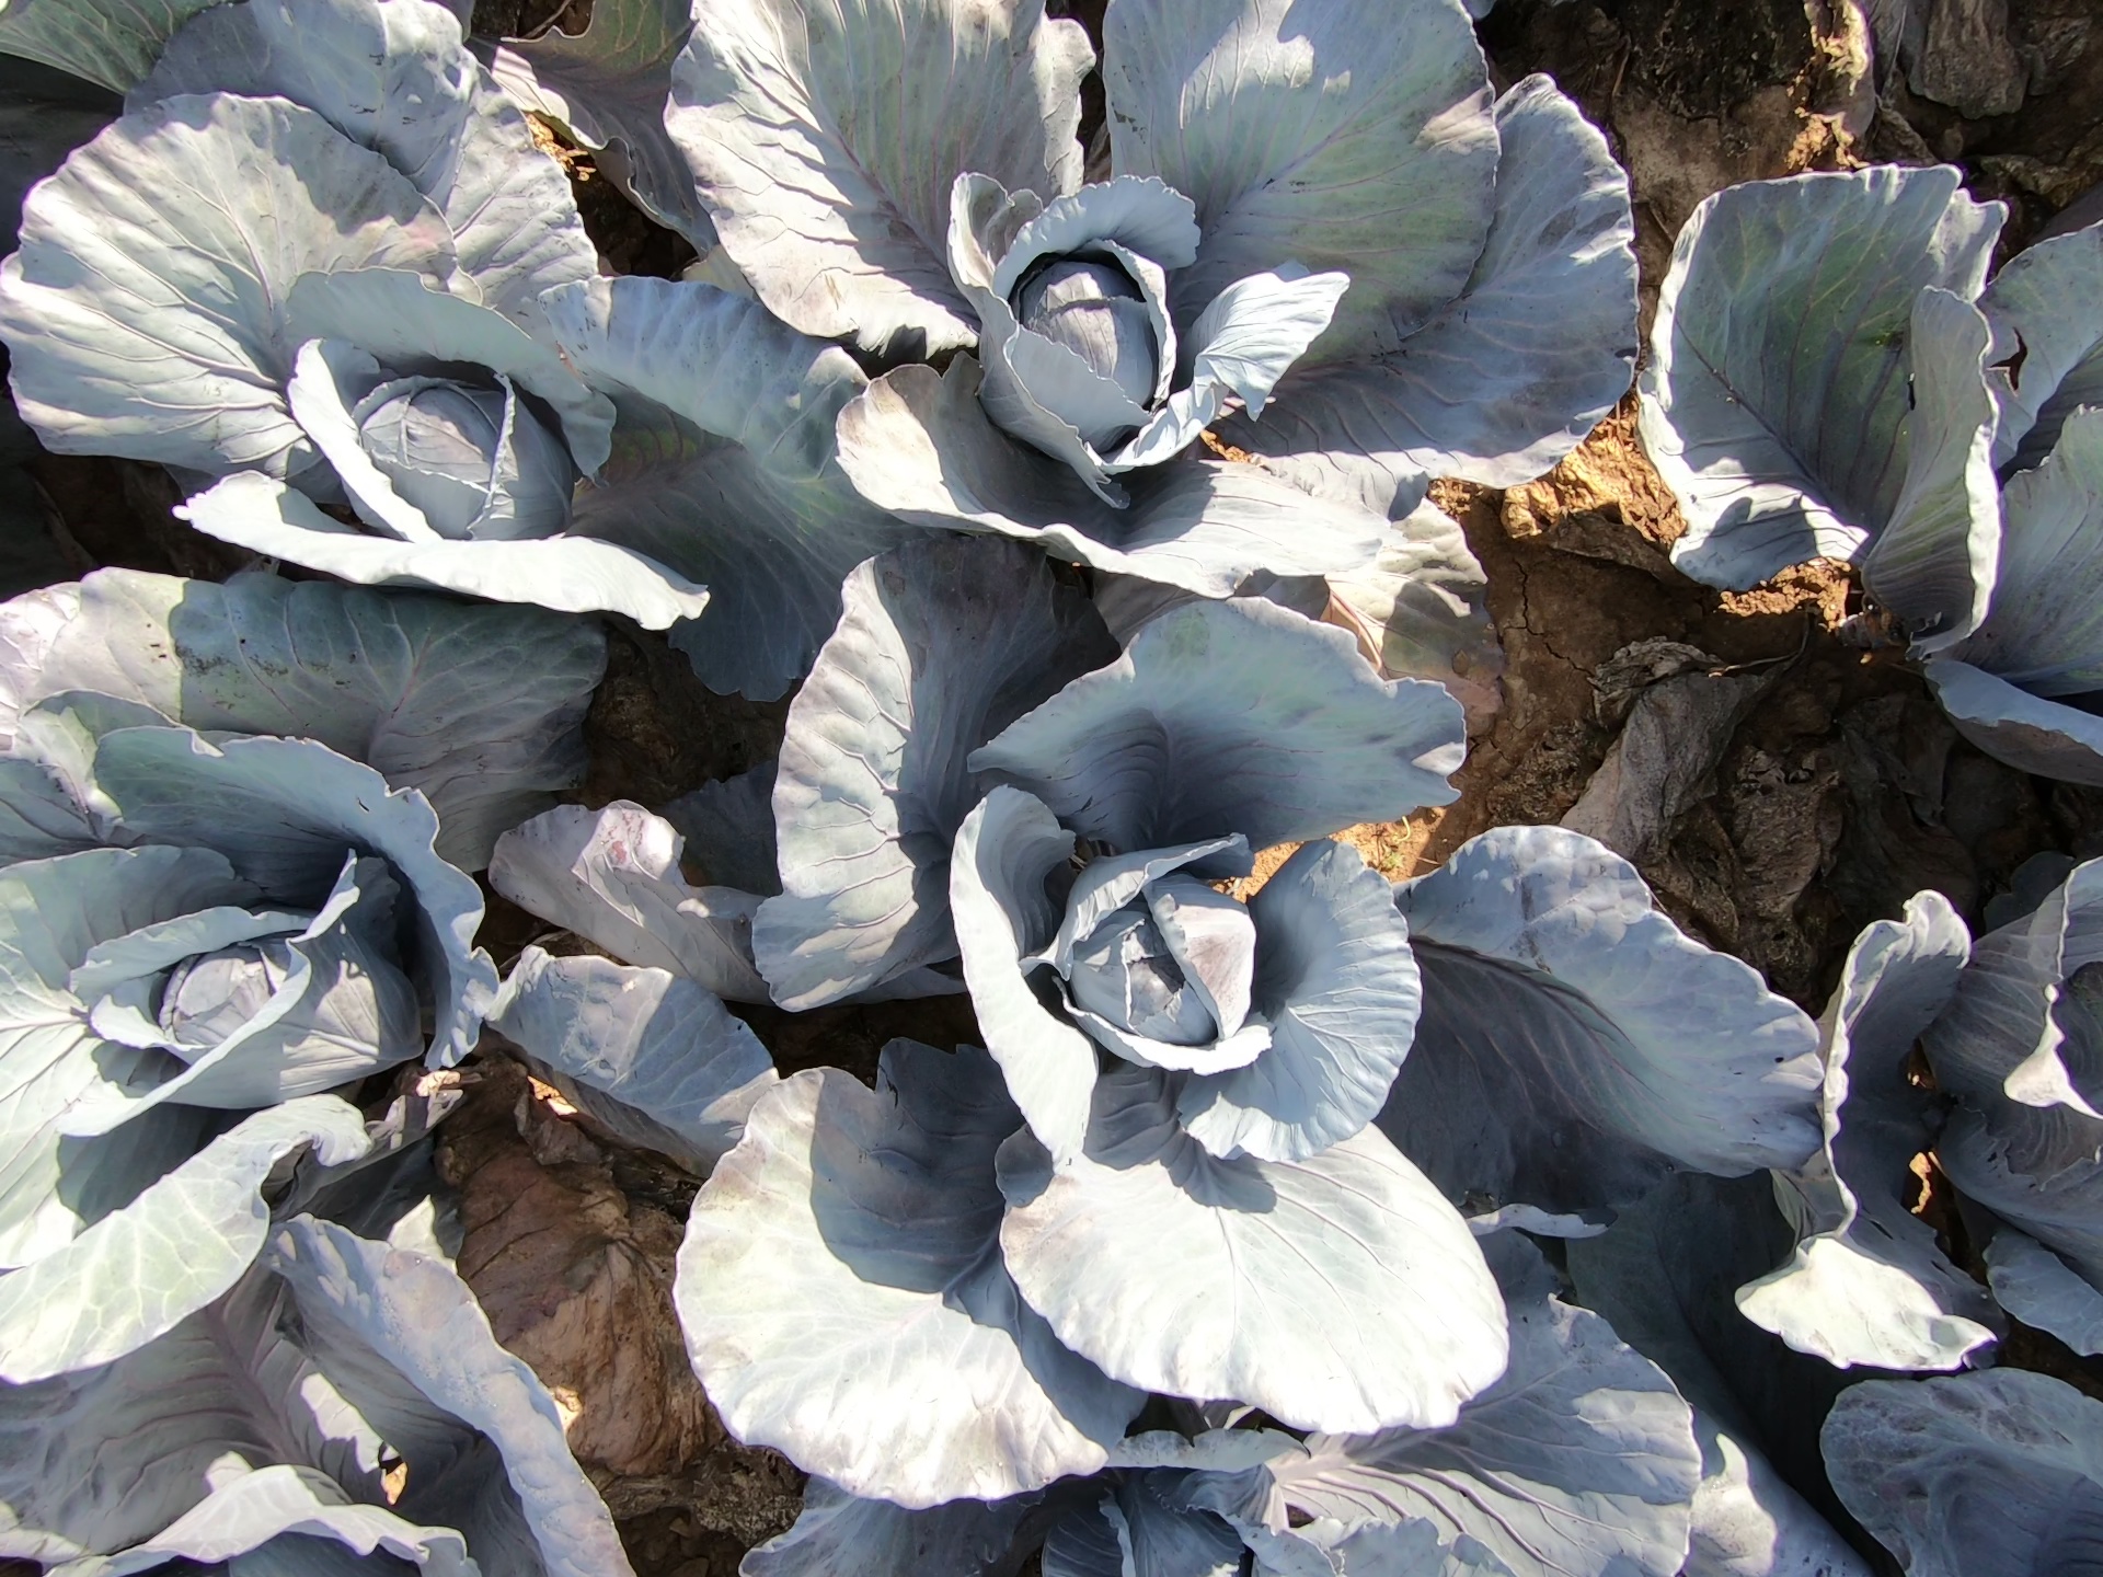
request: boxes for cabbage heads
[352,379,572,546]
[160,925,404,1083]
[1062,879,1249,1048]
[1088,1484,1238,1574]
[1013,258,1158,430]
